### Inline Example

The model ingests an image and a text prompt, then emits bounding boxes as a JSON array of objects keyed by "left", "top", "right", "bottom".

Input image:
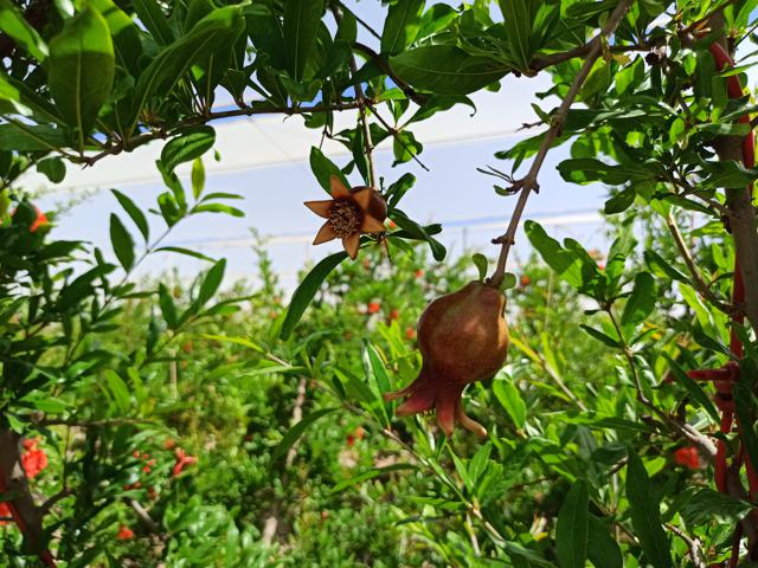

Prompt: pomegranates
[
  {"left": 302, "top": 173, "right": 388, "bottom": 260},
  {"left": 381, "top": 280, "right": 509, "bottom": 437}
]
